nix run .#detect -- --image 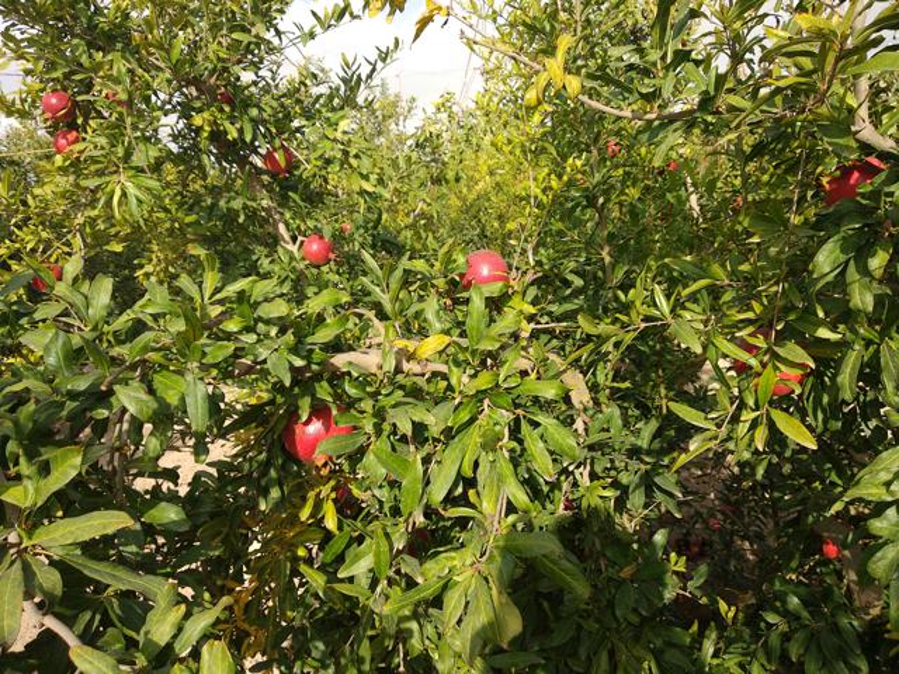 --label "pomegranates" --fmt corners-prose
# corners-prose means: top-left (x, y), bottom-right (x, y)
top-left (822, 538), bottom-right (843, 560)
top-left (825, 157), bottom-right (886, 206)
top-left (53, 128), bottom-right (80, 154)
top-left (31, 263), bottom-right (63, 293)
top-left (280, 406), bottom-right (355, 463)
top-left (733, 329), bottom-right (806, 396)
top-left (41, 90), bottom-right (74, 121)
top-left (459, 250), bottom-right (510, 291)
top-left (301, 233), bottom-right (339, 267)
top-left (215, 93), bottom-right (232, 104)
top-left (264, 147), bottom-right (294, 178)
